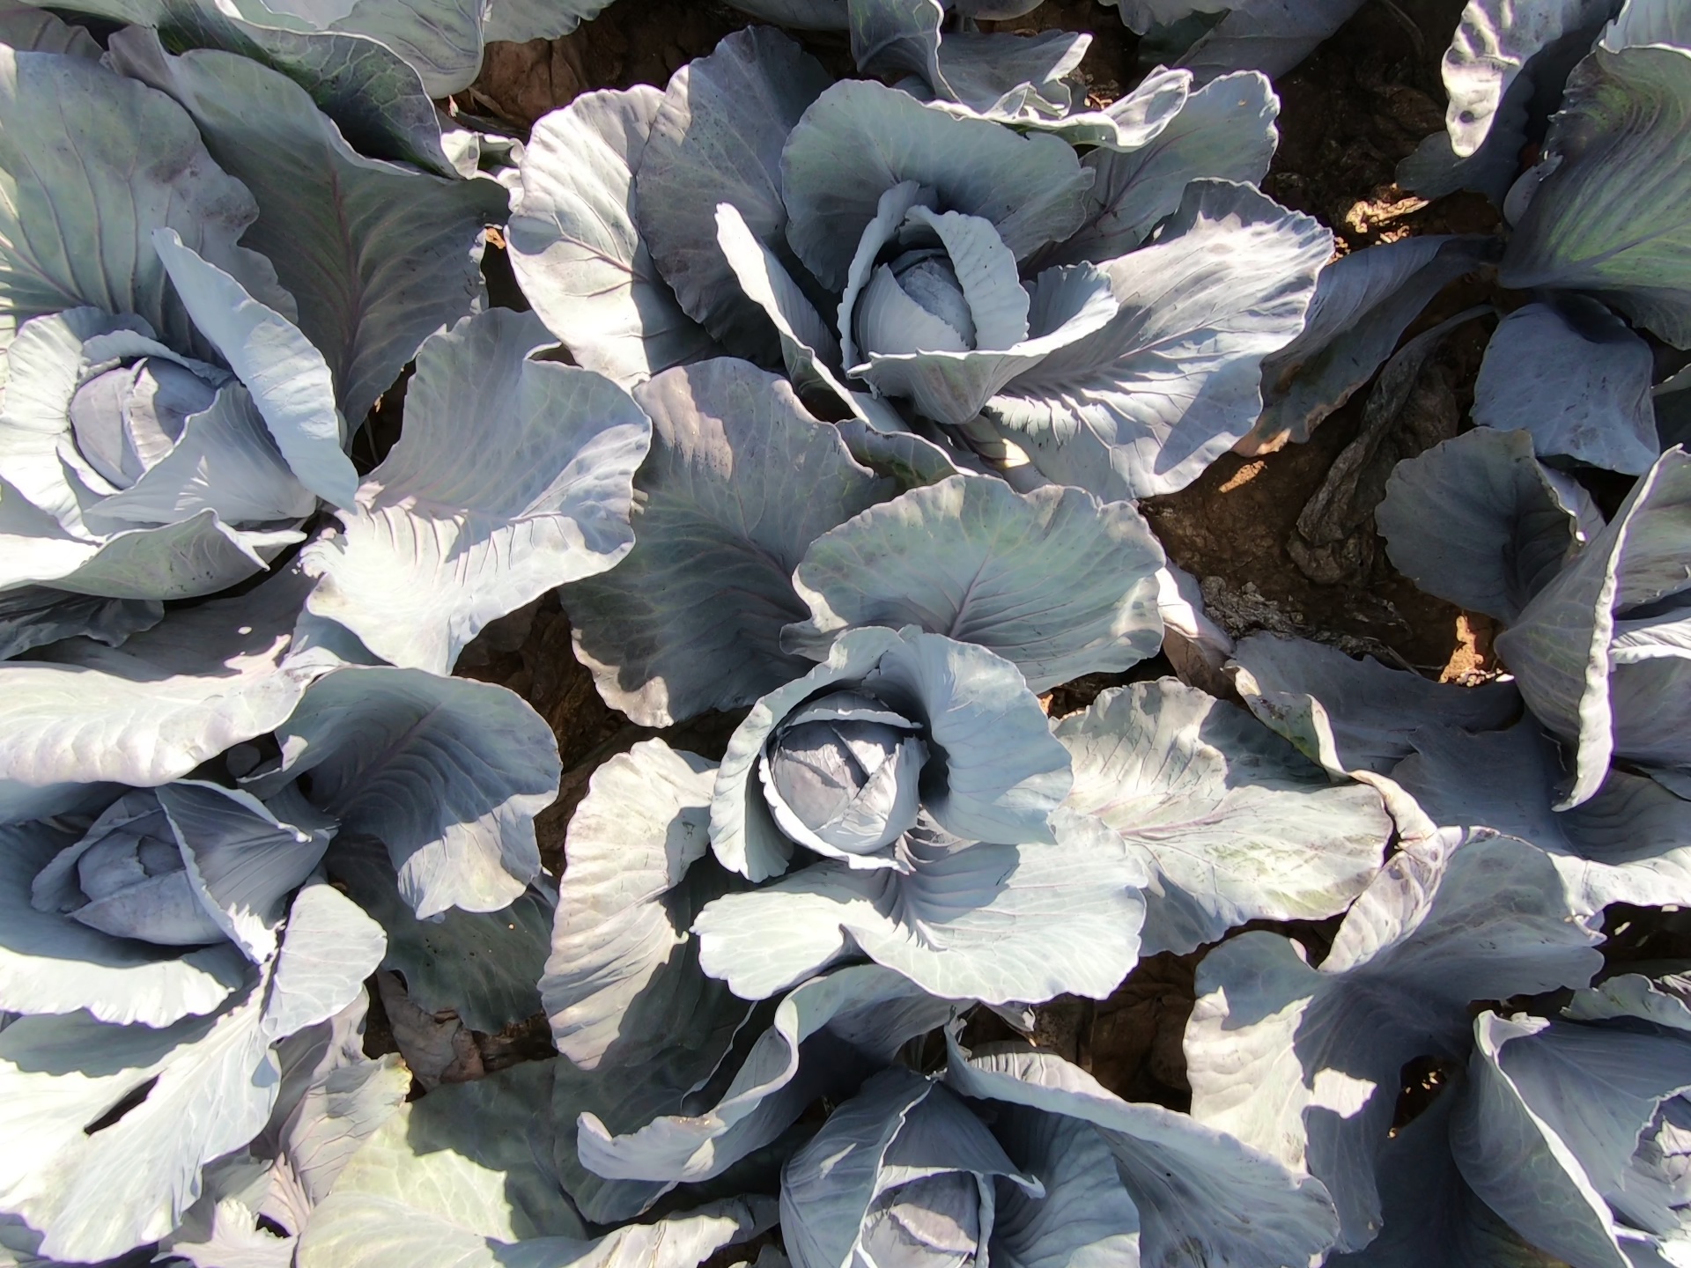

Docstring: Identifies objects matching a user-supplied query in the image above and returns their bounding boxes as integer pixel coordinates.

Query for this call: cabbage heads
[66,353,260,508]
[1592,618,1687,757]
[856,250,996,372]
[788,1104,996,1267]
[1536,1042,1688,1244]
[766,699,919,856]
[75,796,268,937]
